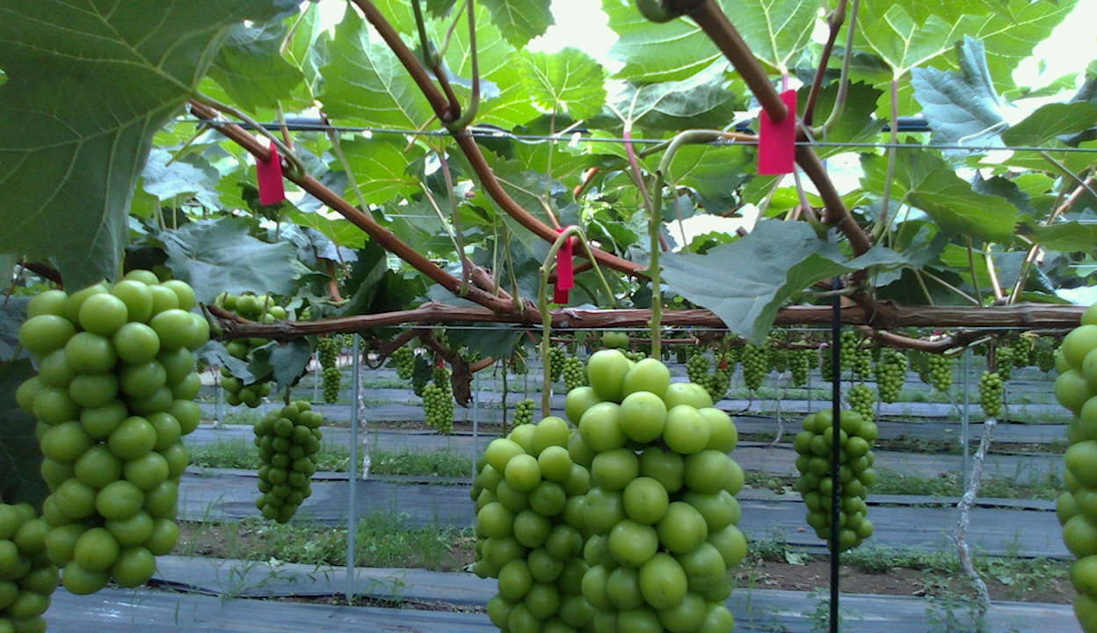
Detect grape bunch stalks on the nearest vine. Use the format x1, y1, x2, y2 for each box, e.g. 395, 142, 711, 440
651, 129, 759, 361
538, 226, 588, 418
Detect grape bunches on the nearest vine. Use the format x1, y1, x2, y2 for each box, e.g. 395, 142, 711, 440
0, 502, 61, 632
469, 416, 594, 632
18, 269, 209, 595
563, 349, 745, 632
1055, 302, 1096, 631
